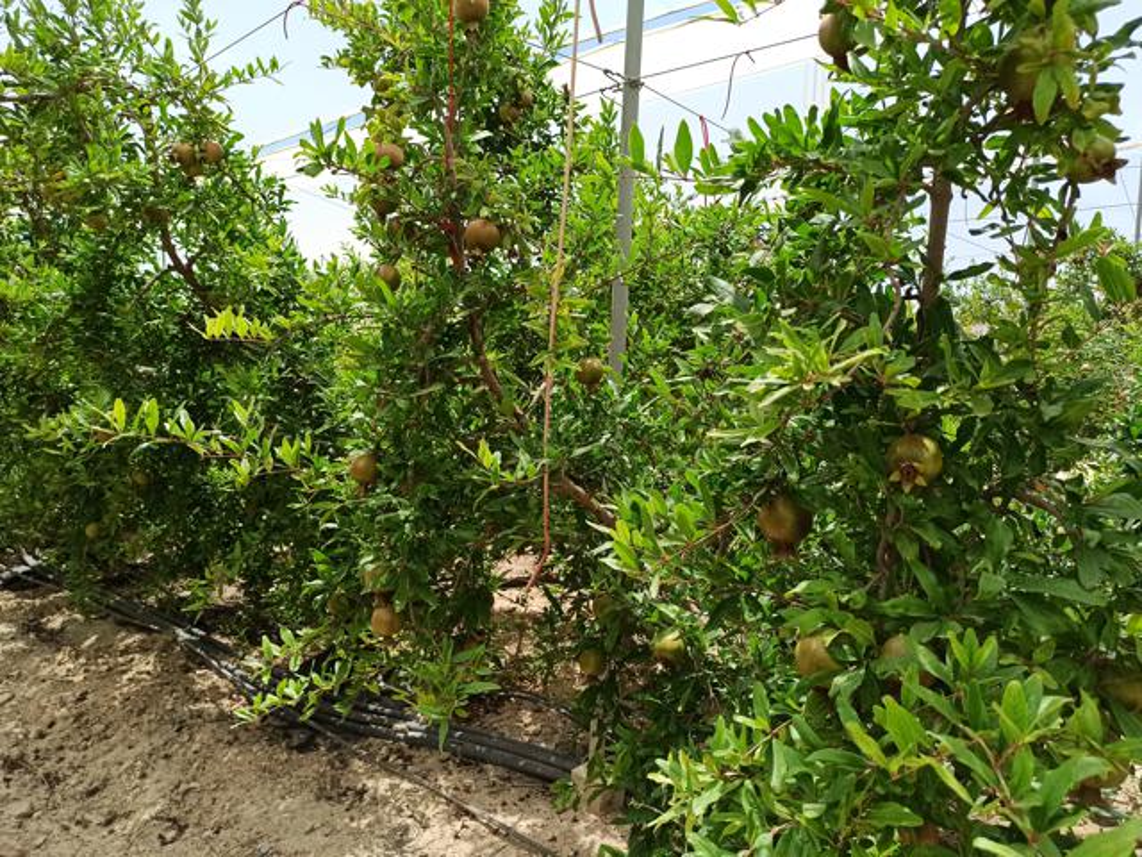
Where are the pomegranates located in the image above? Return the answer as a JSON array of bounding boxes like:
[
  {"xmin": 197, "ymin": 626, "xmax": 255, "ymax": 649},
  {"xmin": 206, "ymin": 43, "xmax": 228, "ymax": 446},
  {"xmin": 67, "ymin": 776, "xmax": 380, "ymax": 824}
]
[
  {"xmin": 653, "ymin": 639, "xmax": 682, "ymax": 662},
  {"xmin": 166, "ymin": 141, "xmax": 193, "ymax": 164},
  {"xmin": 362, "ymin": 568, "xmax": 393, "ymax": 609},
  {"xmin": 796, "ymin": 634, "xmax": 840, "ymax": 677},
  {"xmin": 464, "ymin": 218, "xmax": 501, "ymax": 262},
  {"xmin": 369, "ymin": 603, "xmax": 401, "ymax": 646},
  {"xmin": 885, "ymin": 432, "xmax": 944, "ymax": 496},
  {"xmin": 881, "ymin": 634, "xmax": 935, "ymax": 687},
  {"xmin": 198, "ymin": 141, "xmax": 225, "ymax": 164},
  {"xmin": 130, "ymin": 470, "xmax": 150, "ymax": 486},
  {"xmin": 84, "ymin": 520, "xmax": 100, "ymax": 539},
  {"xmin": 375, "ymin": 143, "xmax": 403, "ymax": 168},
  {"xmin": 757, "ymin": 496, "xmax": 812, "ymax": 561},
  {"xmin": 576, "ymin": 357, "xmax": 605, "ymax": 393},
  {"xmin": 817, "ymin": 12, "xmax": 849, "ymax": 73},
  {"xmin": 350, "ymin": 452, "xmax": 377, "ymax": 496},
  {"xmin": 377, "ymin": 262, "xmax": 401, "ymax": 289},
  {"xmin": 1105, "ymin": 684, "xmax": 1142, "ymax": 714},
  {"xmin": 580, "ymin": 648, "xmax": 603, "ymax": 686},
  {"xmin": 371, "ymin": 200, "xmax": 391, "ymax": 223},
  {"xmin": 1067, "ymin": 136, "xmax": 1130, "ymax": 186},
  {"xmin": 1067, "ymin": 770, "xmax": 1130, "ymax": 805},
  {"xmin": 453, "ymin": 0, "xmax": 489, "ymax": 37},
  {"xmin": 999, "ymin": 46, "xmax": 1040, "ymax": 123}
]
